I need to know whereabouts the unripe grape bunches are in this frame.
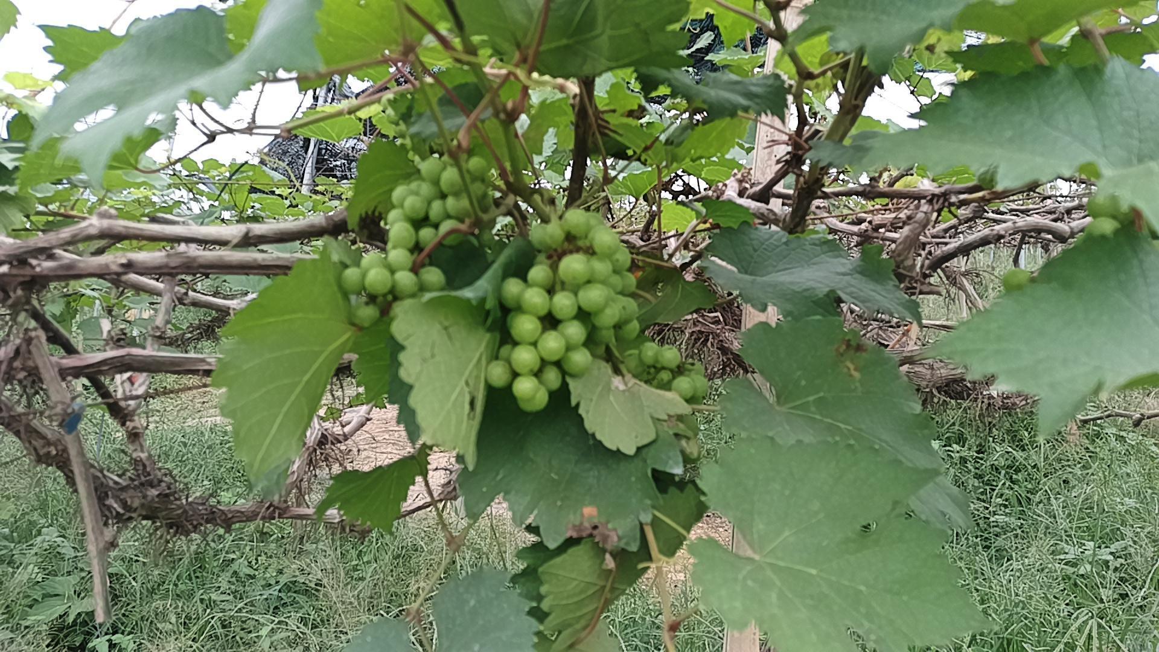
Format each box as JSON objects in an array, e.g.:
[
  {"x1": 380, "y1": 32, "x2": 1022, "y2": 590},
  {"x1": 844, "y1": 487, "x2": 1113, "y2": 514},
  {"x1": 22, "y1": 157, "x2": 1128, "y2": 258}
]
[
  {"x1": 488, "y1": 209, "x2": 707, "y2": 412},
  {"x1": 341, "y1": 156, "x2": 493, "y2": 326}
]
